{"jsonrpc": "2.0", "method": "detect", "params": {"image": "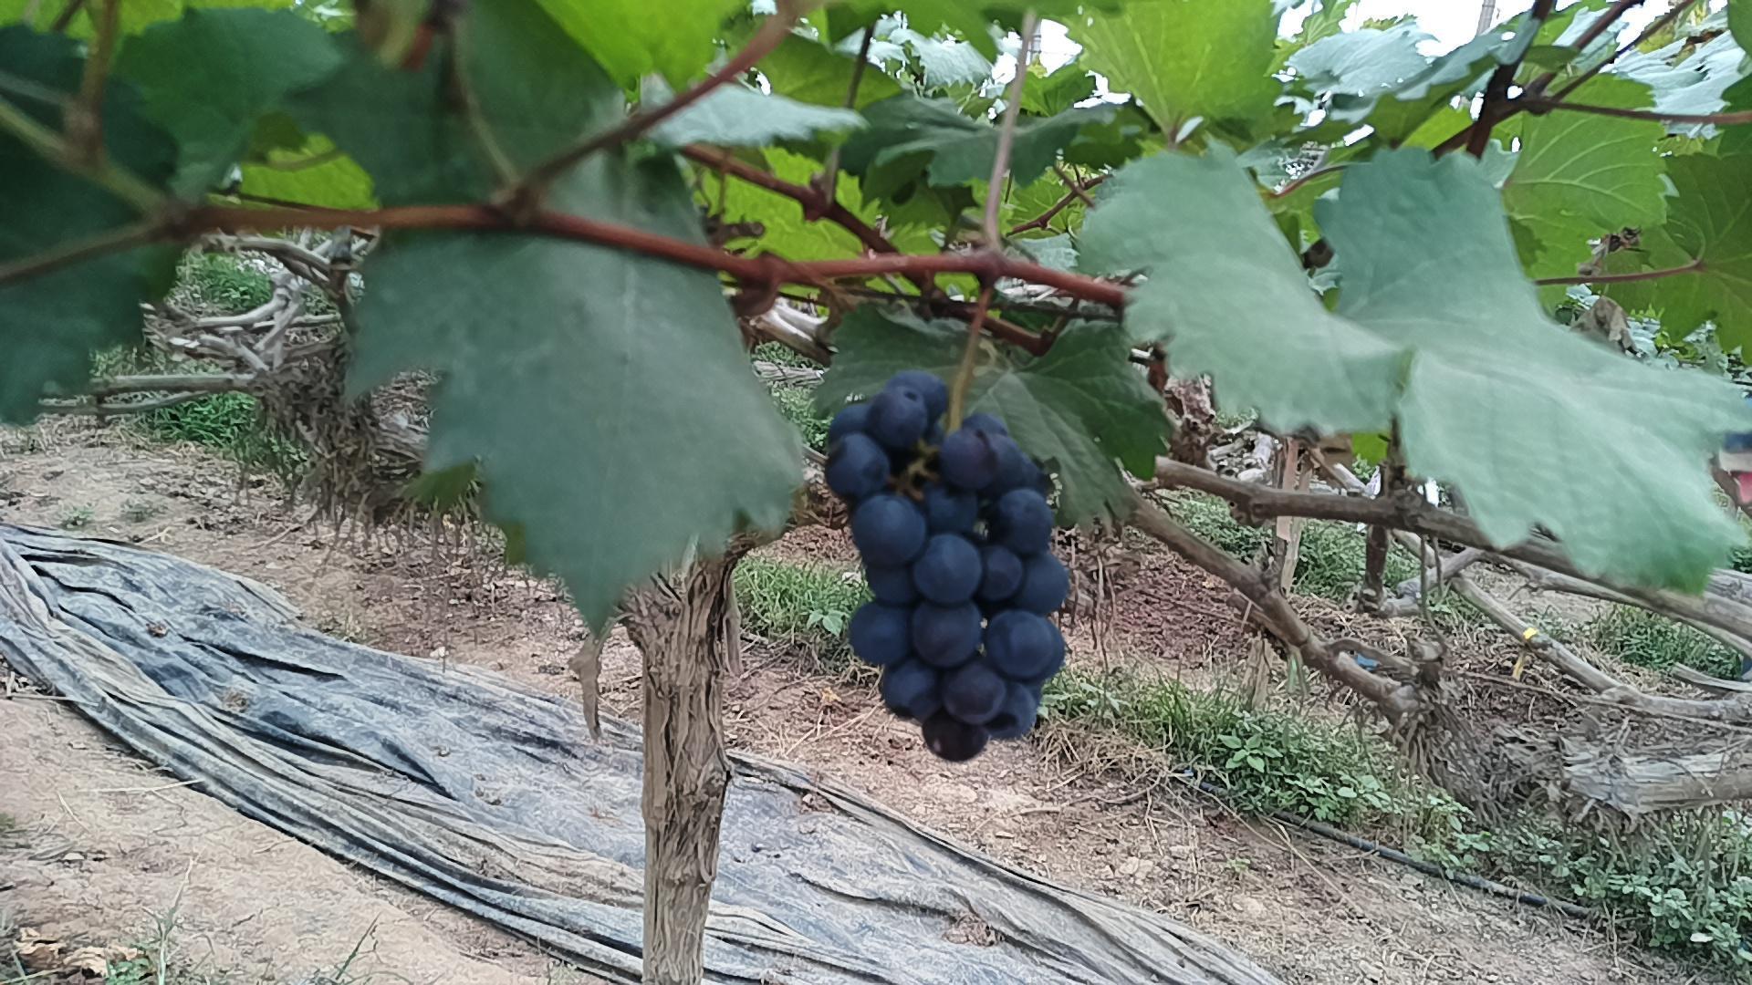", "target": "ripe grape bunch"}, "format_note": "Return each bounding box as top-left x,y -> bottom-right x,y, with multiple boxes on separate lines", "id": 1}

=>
826,370 -> 1069,760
